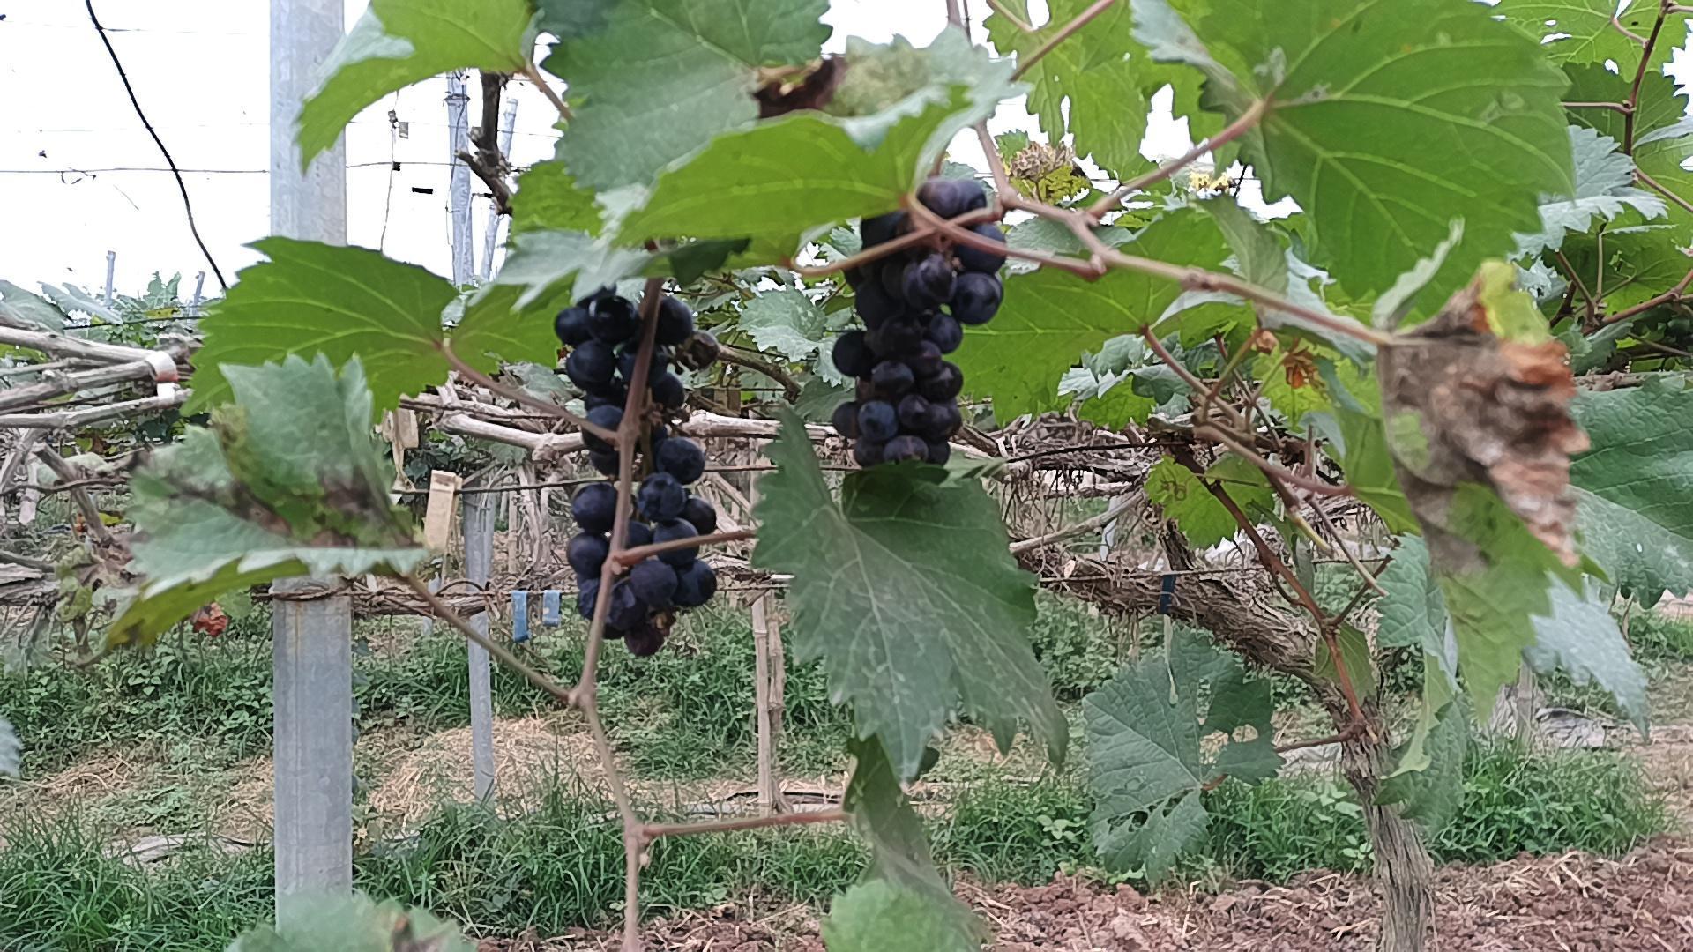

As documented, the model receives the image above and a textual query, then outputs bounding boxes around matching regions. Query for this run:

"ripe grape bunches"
[832,177,1006,466]
[556,279,720,656]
